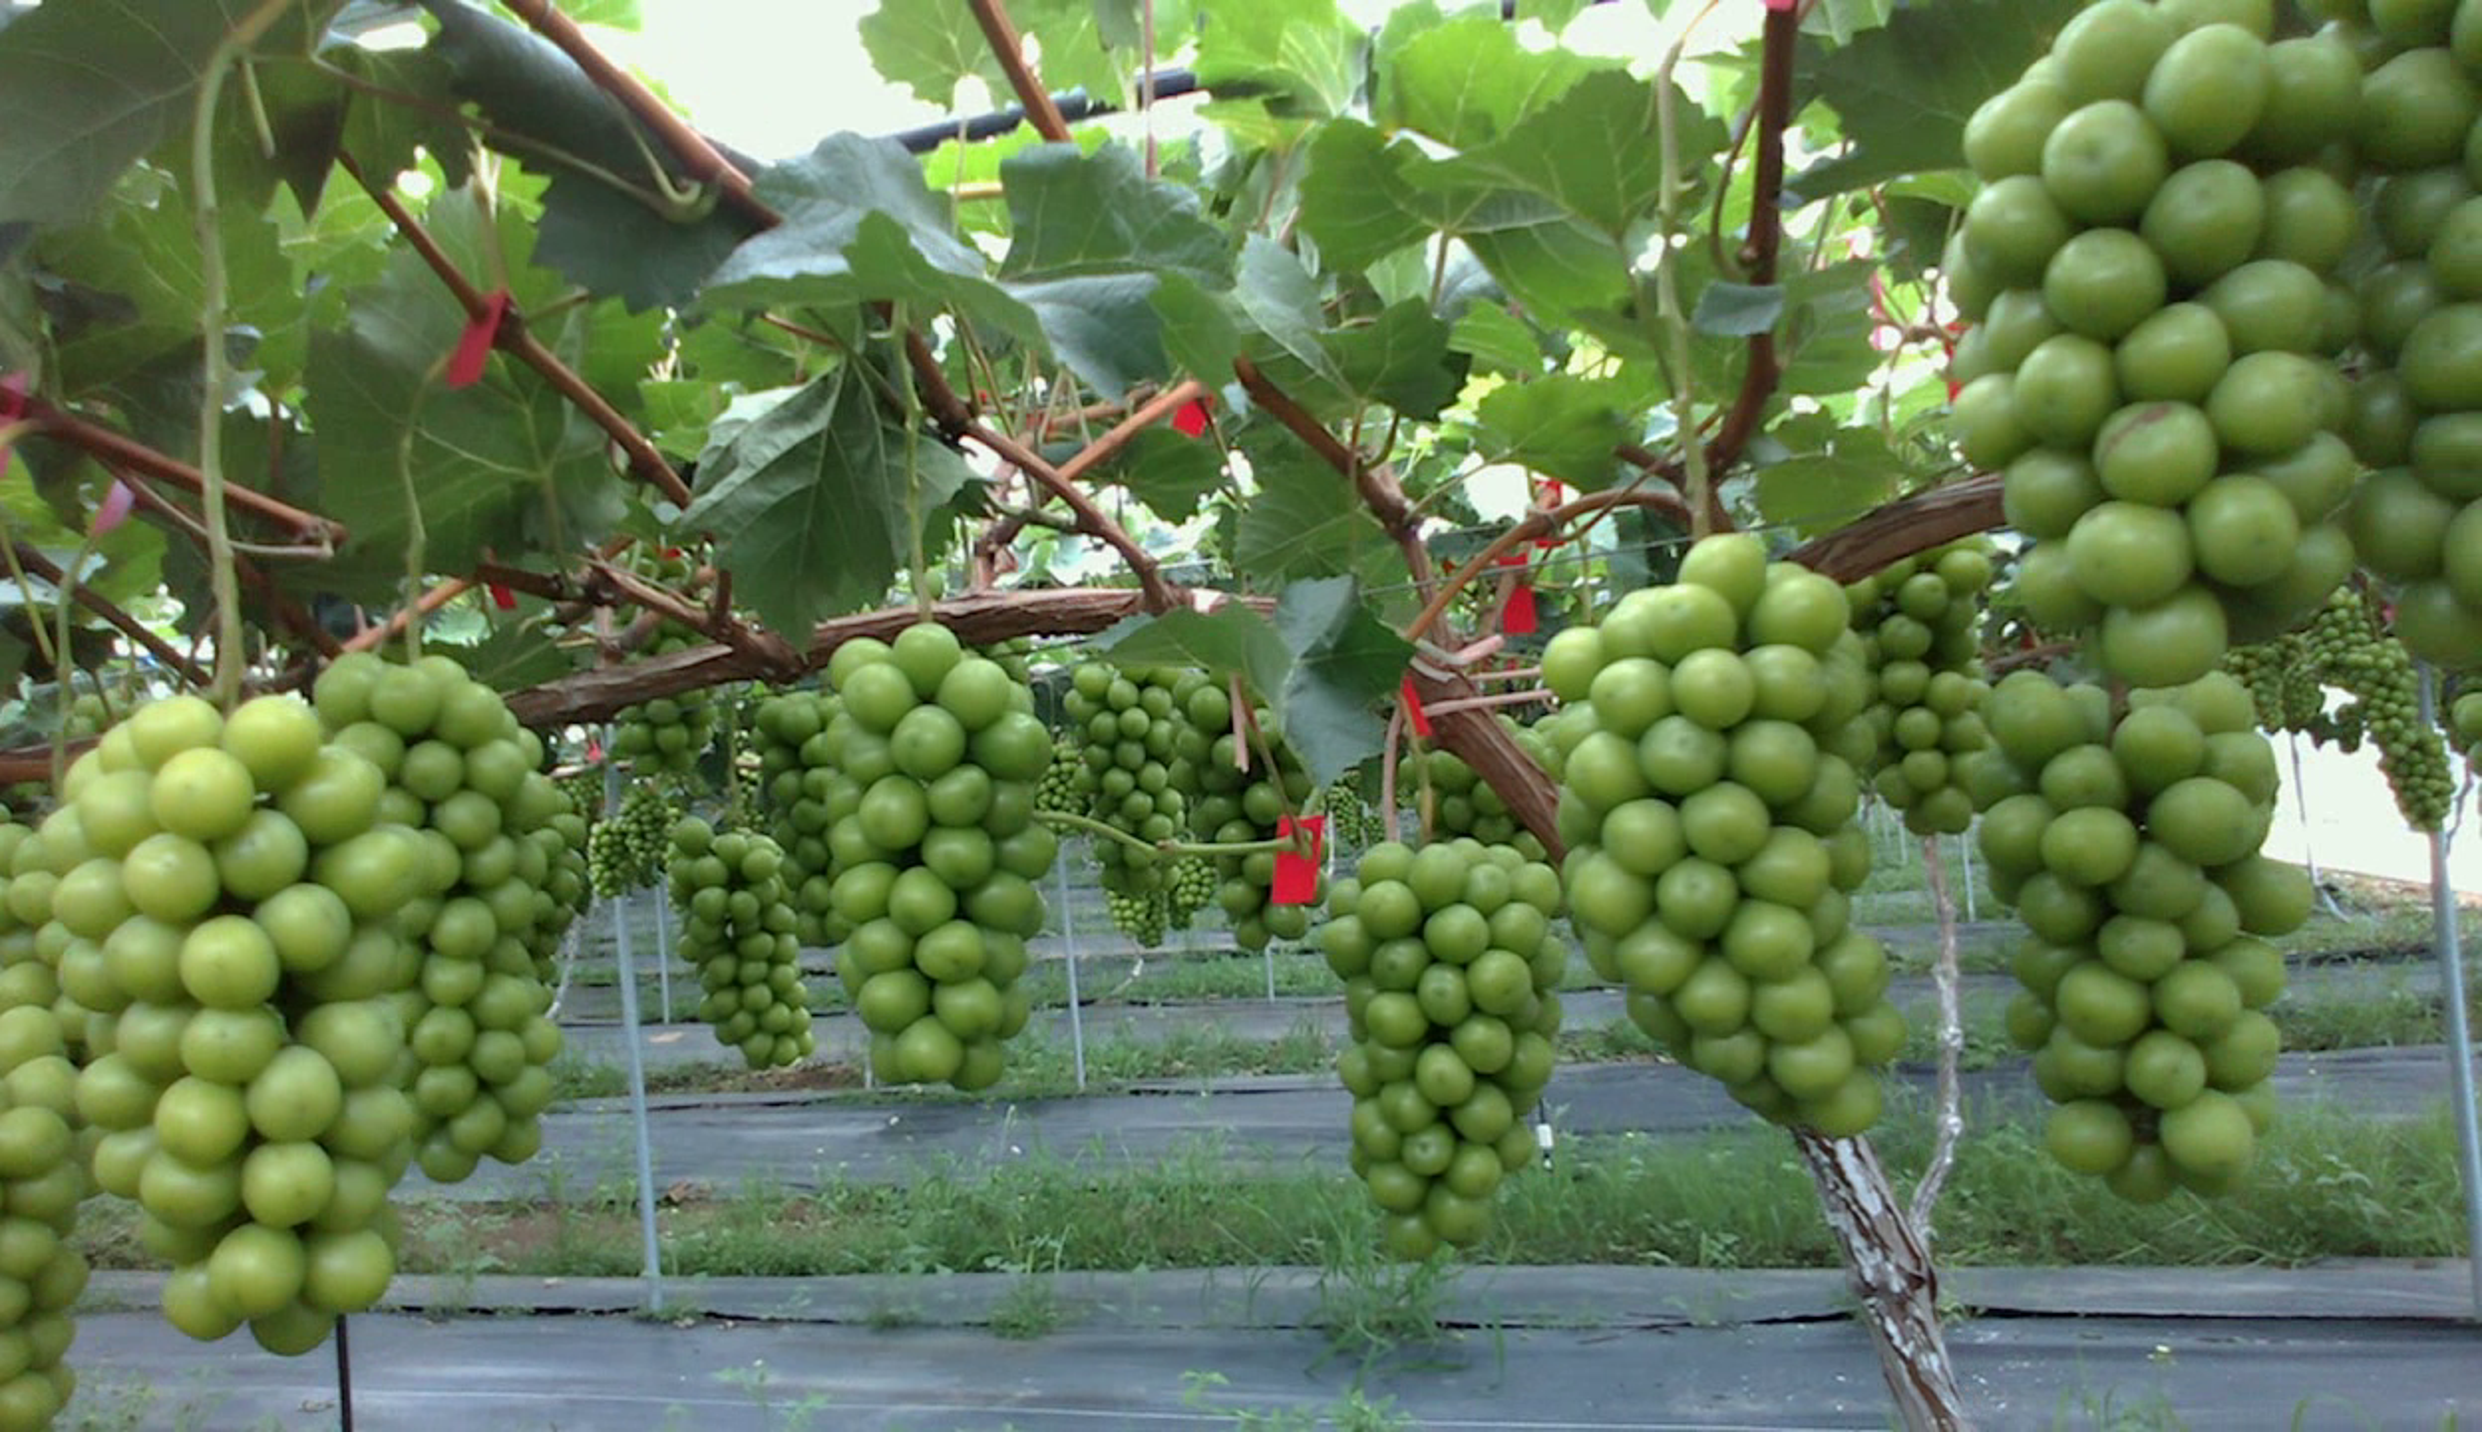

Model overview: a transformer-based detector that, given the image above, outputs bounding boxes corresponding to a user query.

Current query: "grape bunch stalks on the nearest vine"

[193,115,245,714]
[400,354,453,660]
[893,302,931,621]
[1655,32,1710,545]
[1404,726,1436,845]
[2110,680,2130,738]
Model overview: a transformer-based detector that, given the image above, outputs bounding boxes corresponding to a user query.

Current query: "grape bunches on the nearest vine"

[12,696,434,1356]
[817,623,1058,1094]
[1537,533,1909,1138]
[2311,4,2480,666]
[314,652,561,1185]
[1319,839,1565,1259]
[1941,0,2365,688]
[0,821,101,1430]
[1967,664,2317,1201]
